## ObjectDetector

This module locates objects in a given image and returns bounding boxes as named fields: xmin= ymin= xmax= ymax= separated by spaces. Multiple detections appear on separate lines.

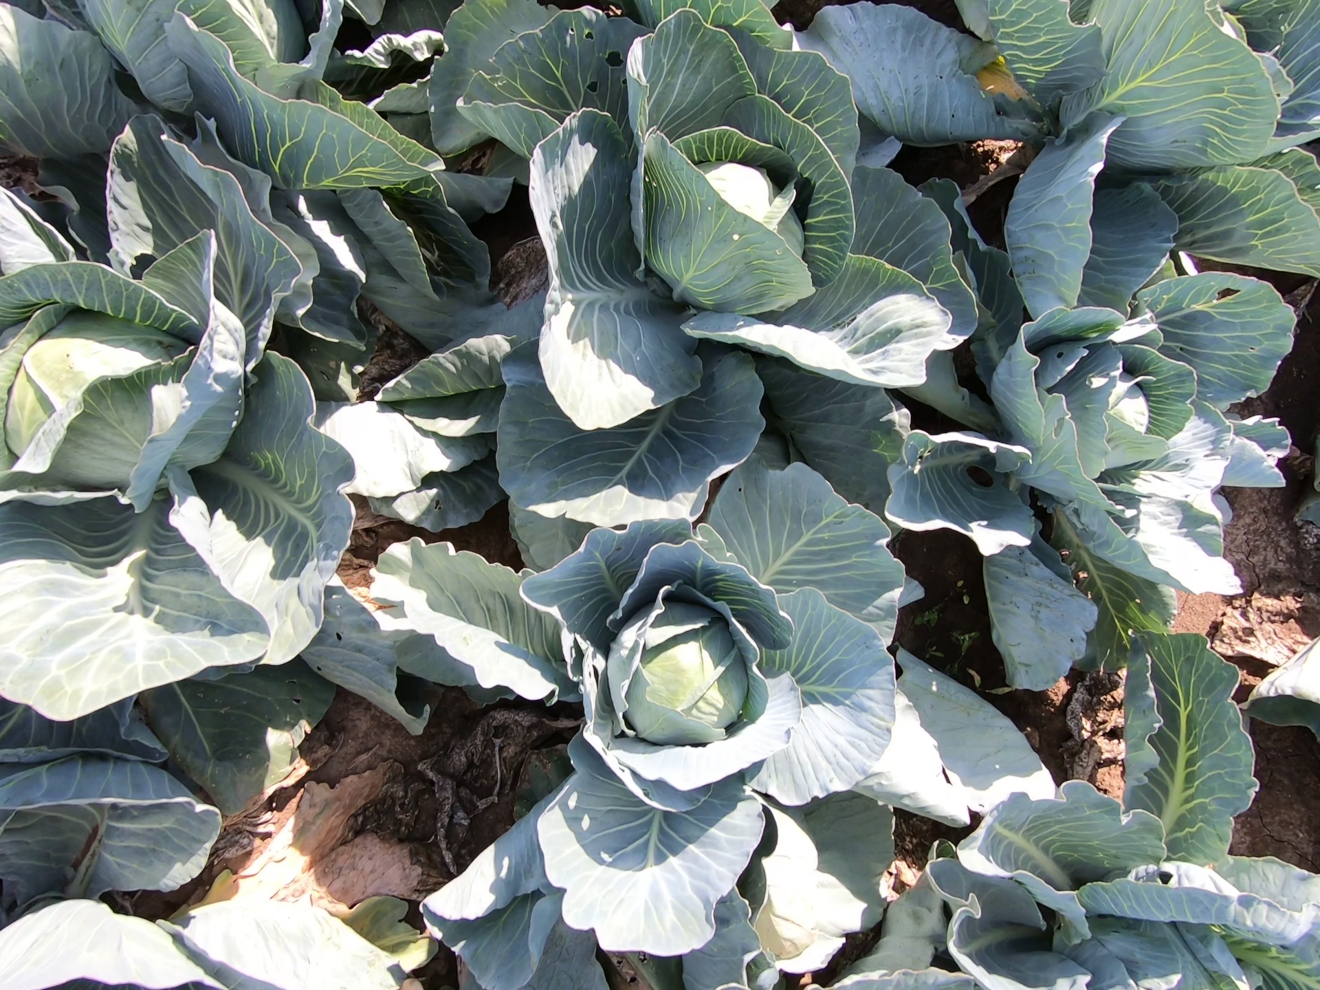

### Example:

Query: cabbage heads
xmin=1089 ymin=909 xmax=1250 ymax=989
xmin=1062 ymin=366 xmax=1152 ymax=456
xmin=3 ymin=305 xmax=198 ymax=485
xmin=1136 ymin=8 xmax=1250 ymax=118
xmin=670 ymin=155 xmax=808 ymax=303
xmin=123 ymin=0 xmax=307 ymax=101
xmin=613 ymin=606 xmax=751 ymax=747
